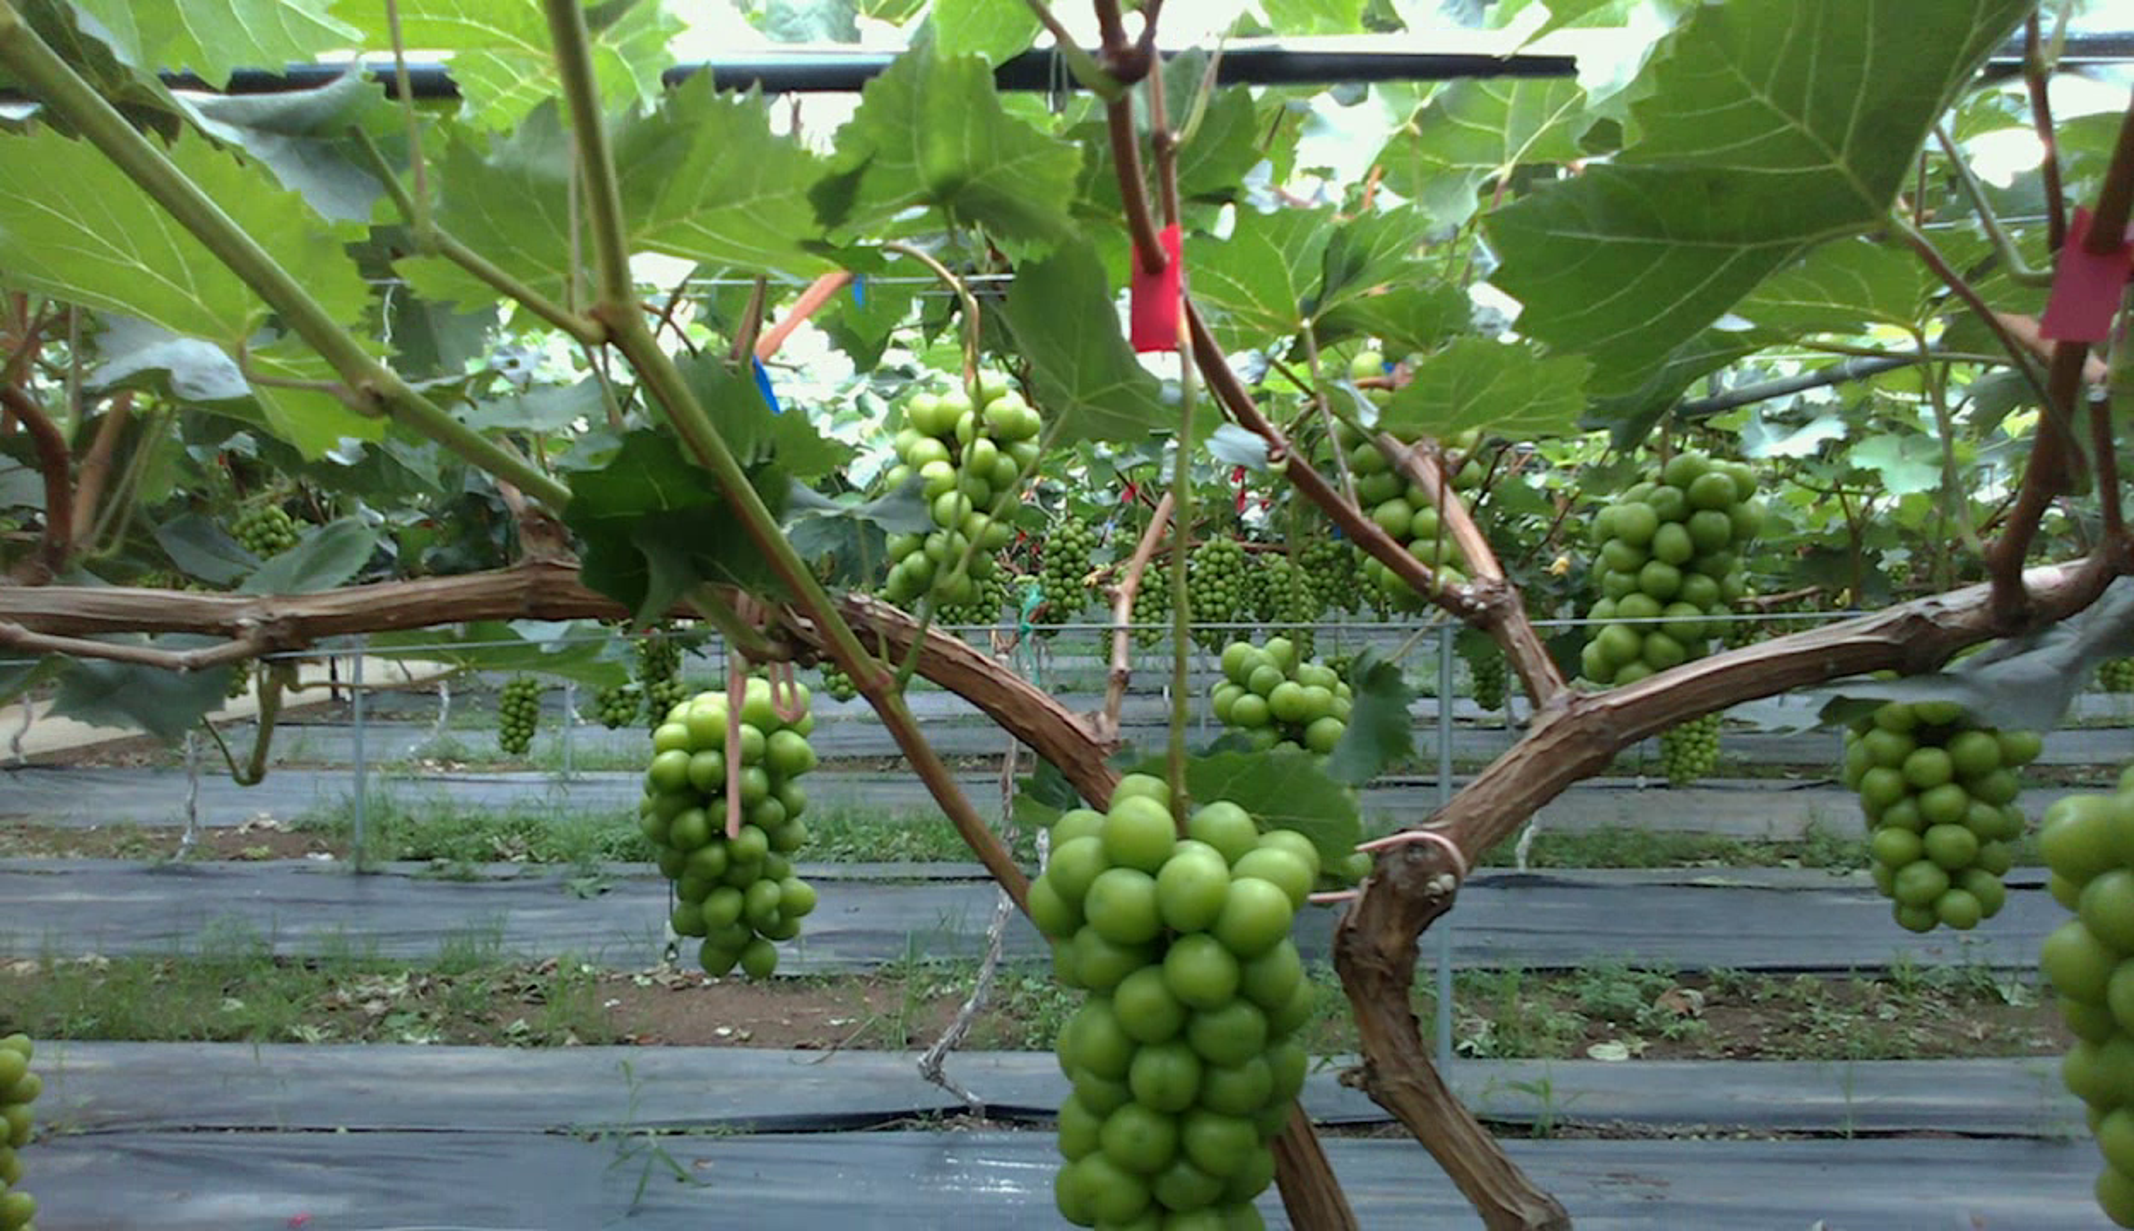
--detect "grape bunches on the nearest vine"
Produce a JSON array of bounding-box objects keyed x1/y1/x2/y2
[
  {"x1": 2038, "y1": 764, "x2": 2131, "y2": 1229},
  {"x1": 1029, "y1": 773, "x2": 1322, "y2": 1228}
]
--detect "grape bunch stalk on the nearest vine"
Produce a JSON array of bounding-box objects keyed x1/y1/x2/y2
[{"x1": 1168, "y1": 301, "x2": 1195, "y2": 843}]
